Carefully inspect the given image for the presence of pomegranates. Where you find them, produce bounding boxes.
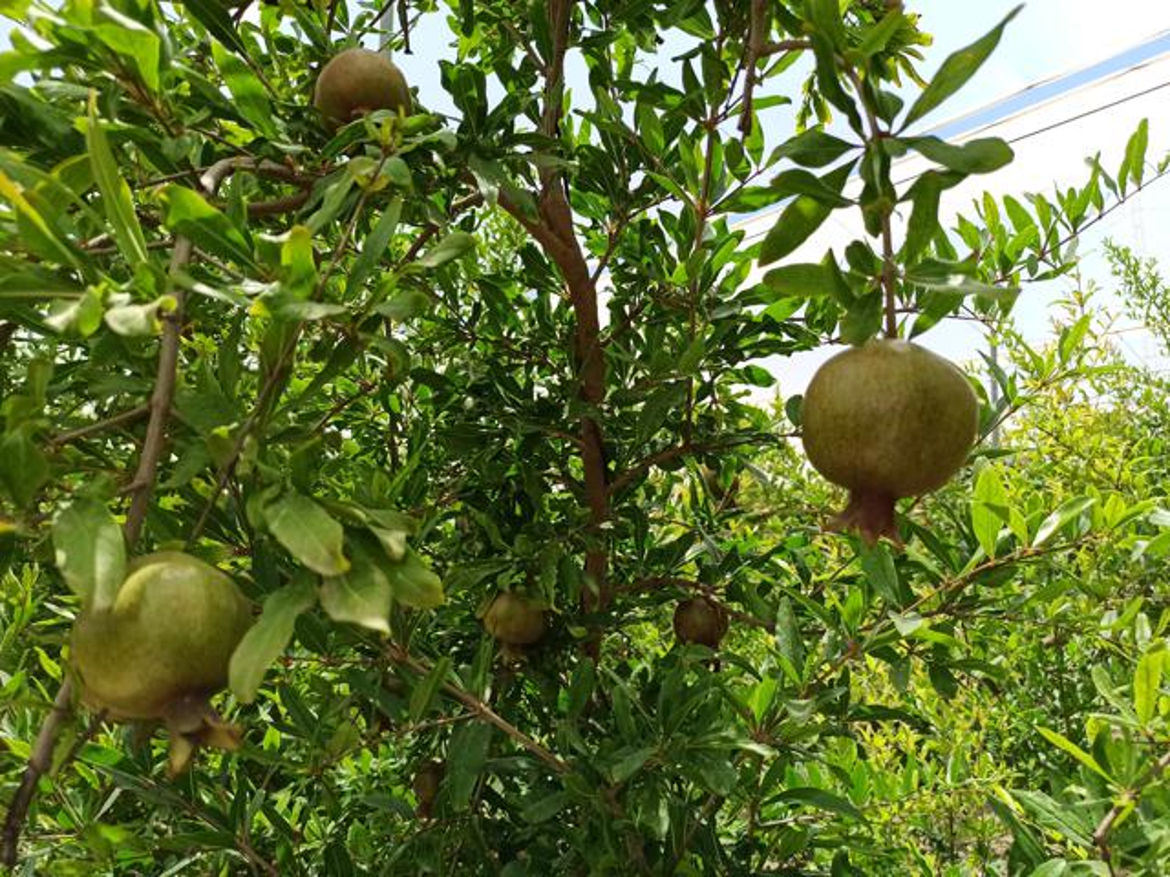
[415,758,446,819]
[69,550,254,777]
[799,340,978,552]
[481,592,543,669]
[313,48,413,121]
[673,596,729,650]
